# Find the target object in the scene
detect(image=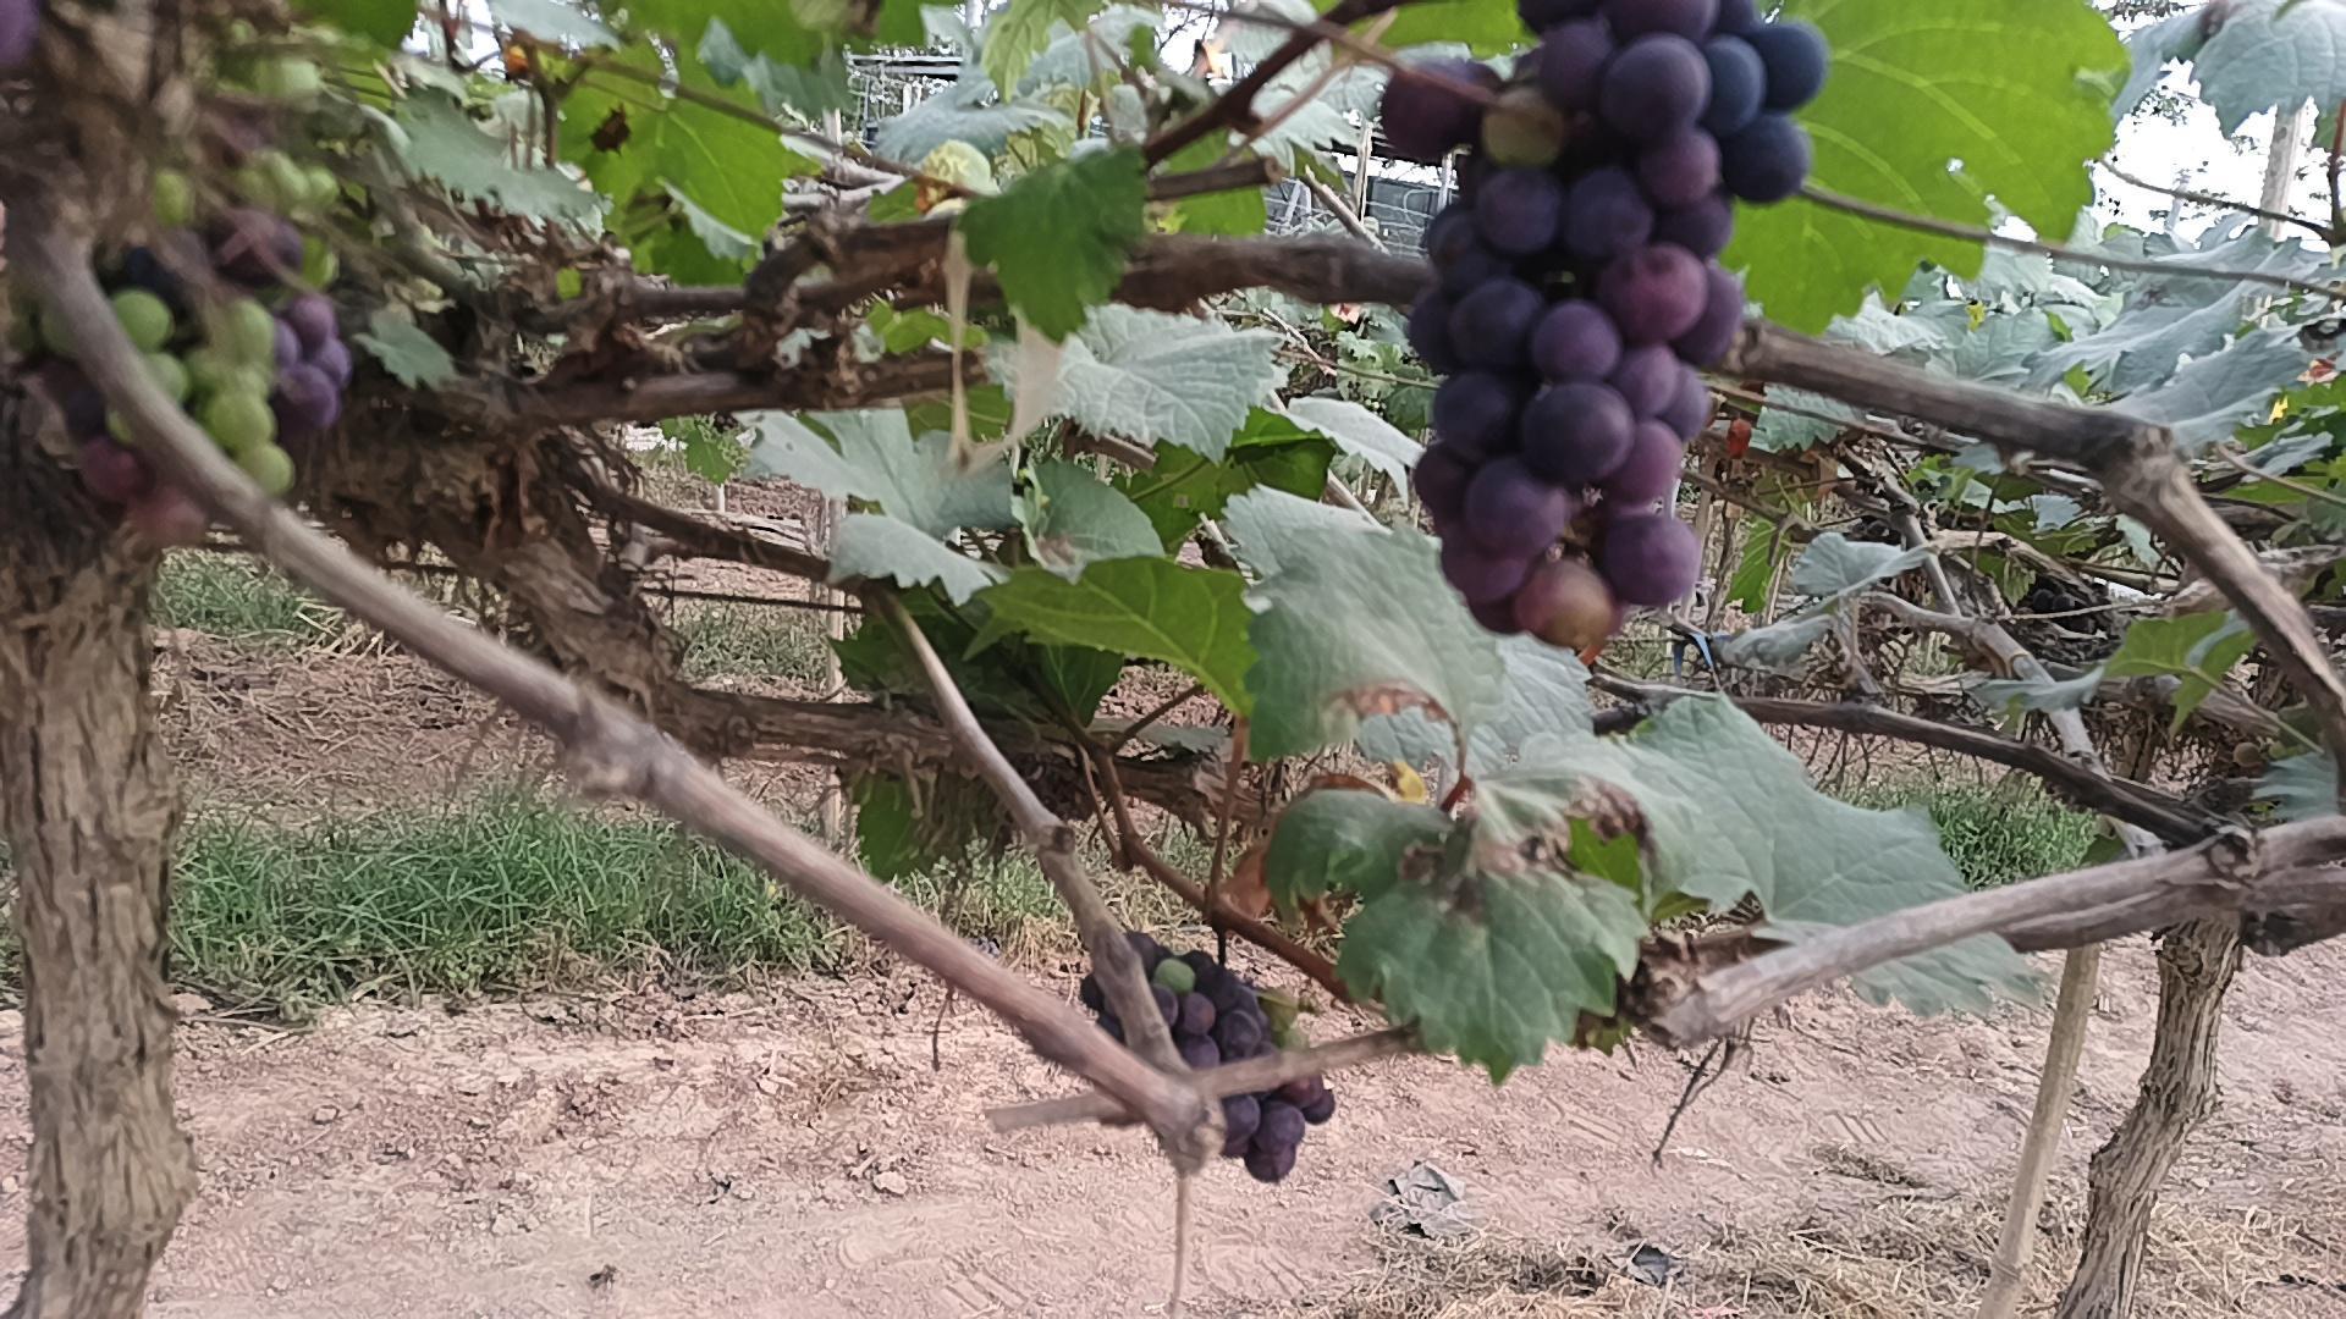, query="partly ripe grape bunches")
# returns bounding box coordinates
[1382,1,1829,650]
[1081,933,1336,1180]
[39,16,352,548]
